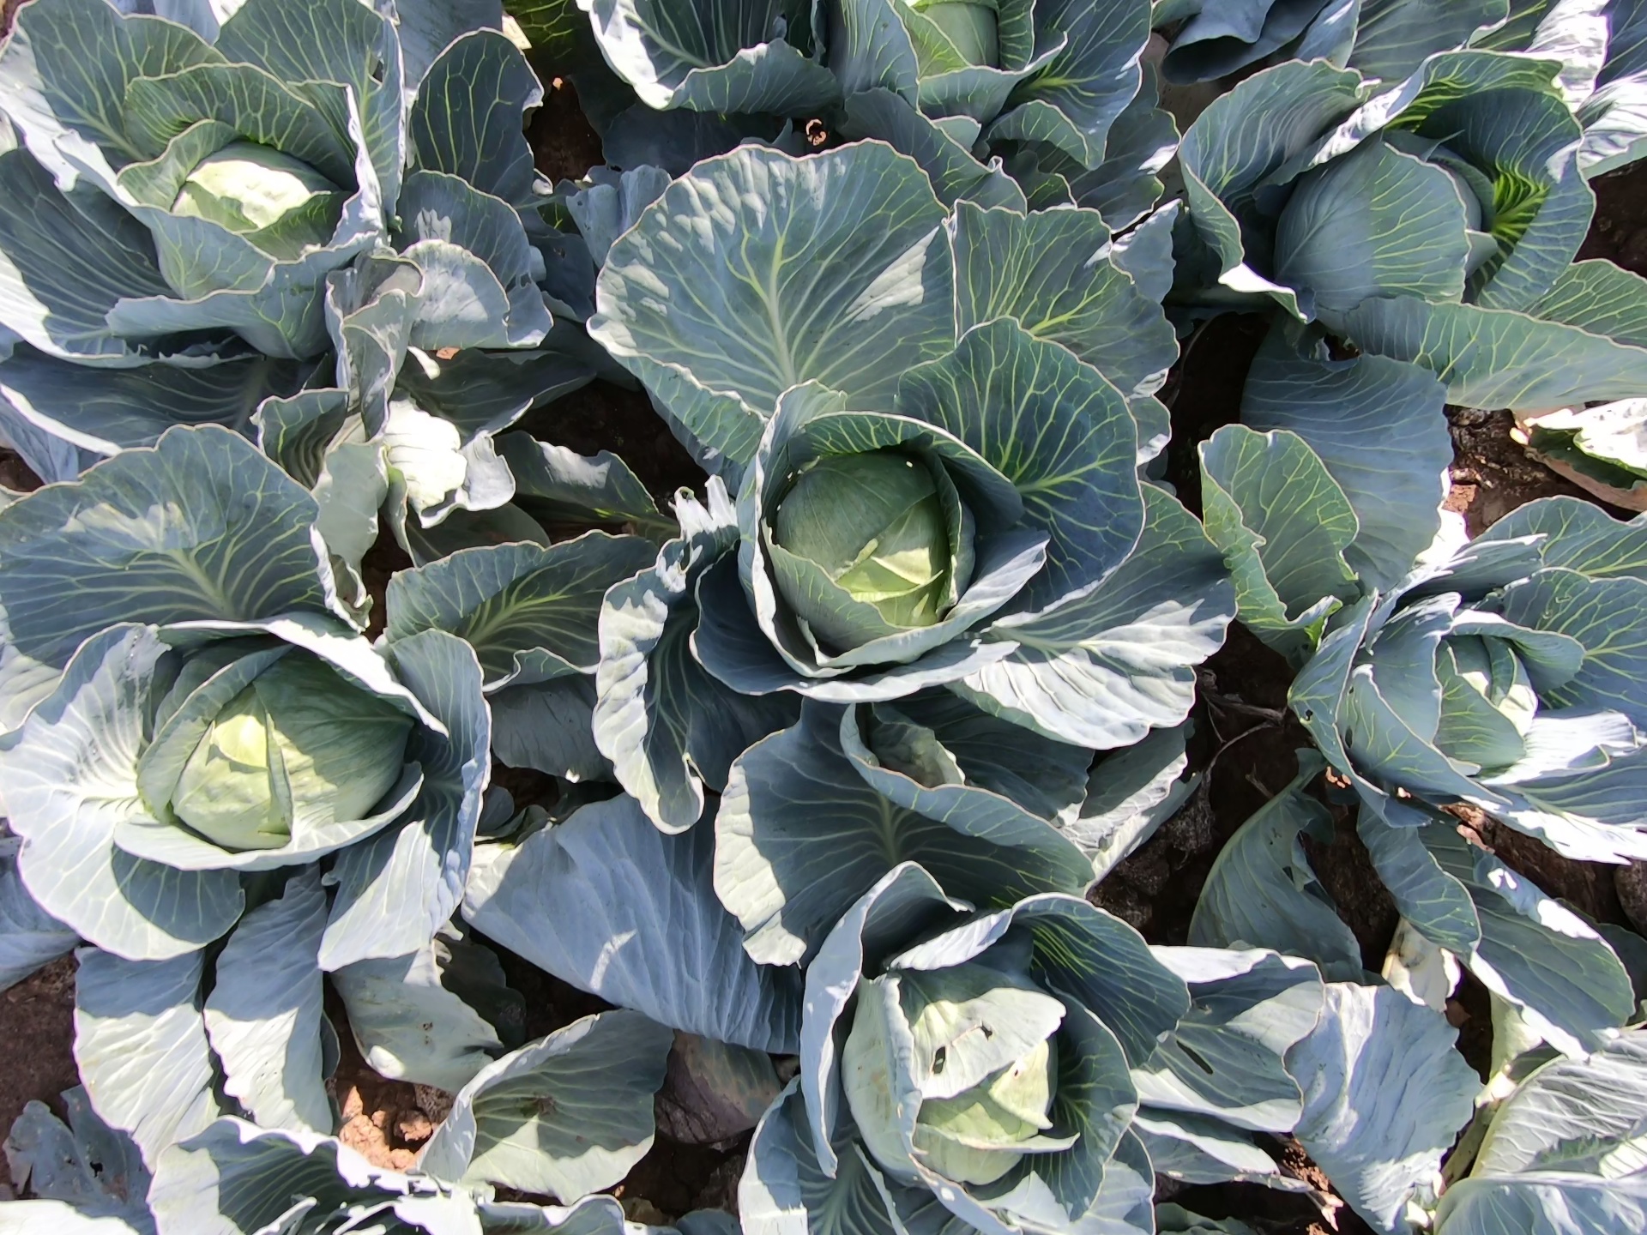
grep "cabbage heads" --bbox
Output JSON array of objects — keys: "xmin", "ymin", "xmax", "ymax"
[
  {"xmin": 158, "ymin": 627, "xmax": 410, "ymax": 852},
  {"xmin": 1328, "ymin": 136, "xmax": 1485, "ymax": 294},
  {"xmin": 776, "ymin": 450, "xmax": 977, "ymax": 646},
  {"xmin": 884, "ymin": 7, "xmax": 1001, "ymax": 104},
  {"xmin": 164, "ymin": 137, "xmax": 353, "ymax": 308},
  {"xmin": 1386, "ymin": 625, "xmax": 1543, "ymax": 765},
  {"xmin": 869, "ymin": 958, "xmax": 1059, "ymax": 1186}
]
